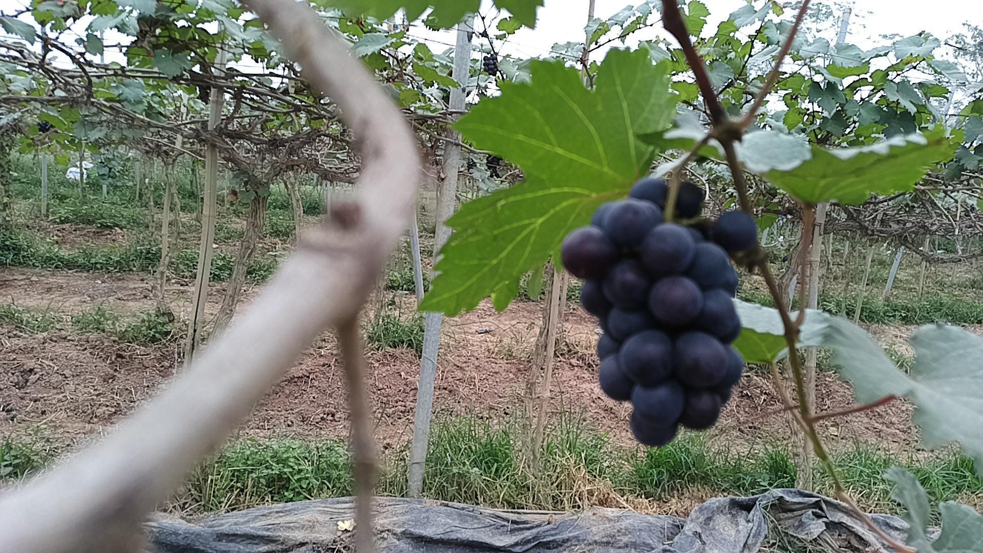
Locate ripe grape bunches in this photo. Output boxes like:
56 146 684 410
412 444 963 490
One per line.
482 50 501 76
37 120 55 135
562 179 757 445
485 155 508 184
